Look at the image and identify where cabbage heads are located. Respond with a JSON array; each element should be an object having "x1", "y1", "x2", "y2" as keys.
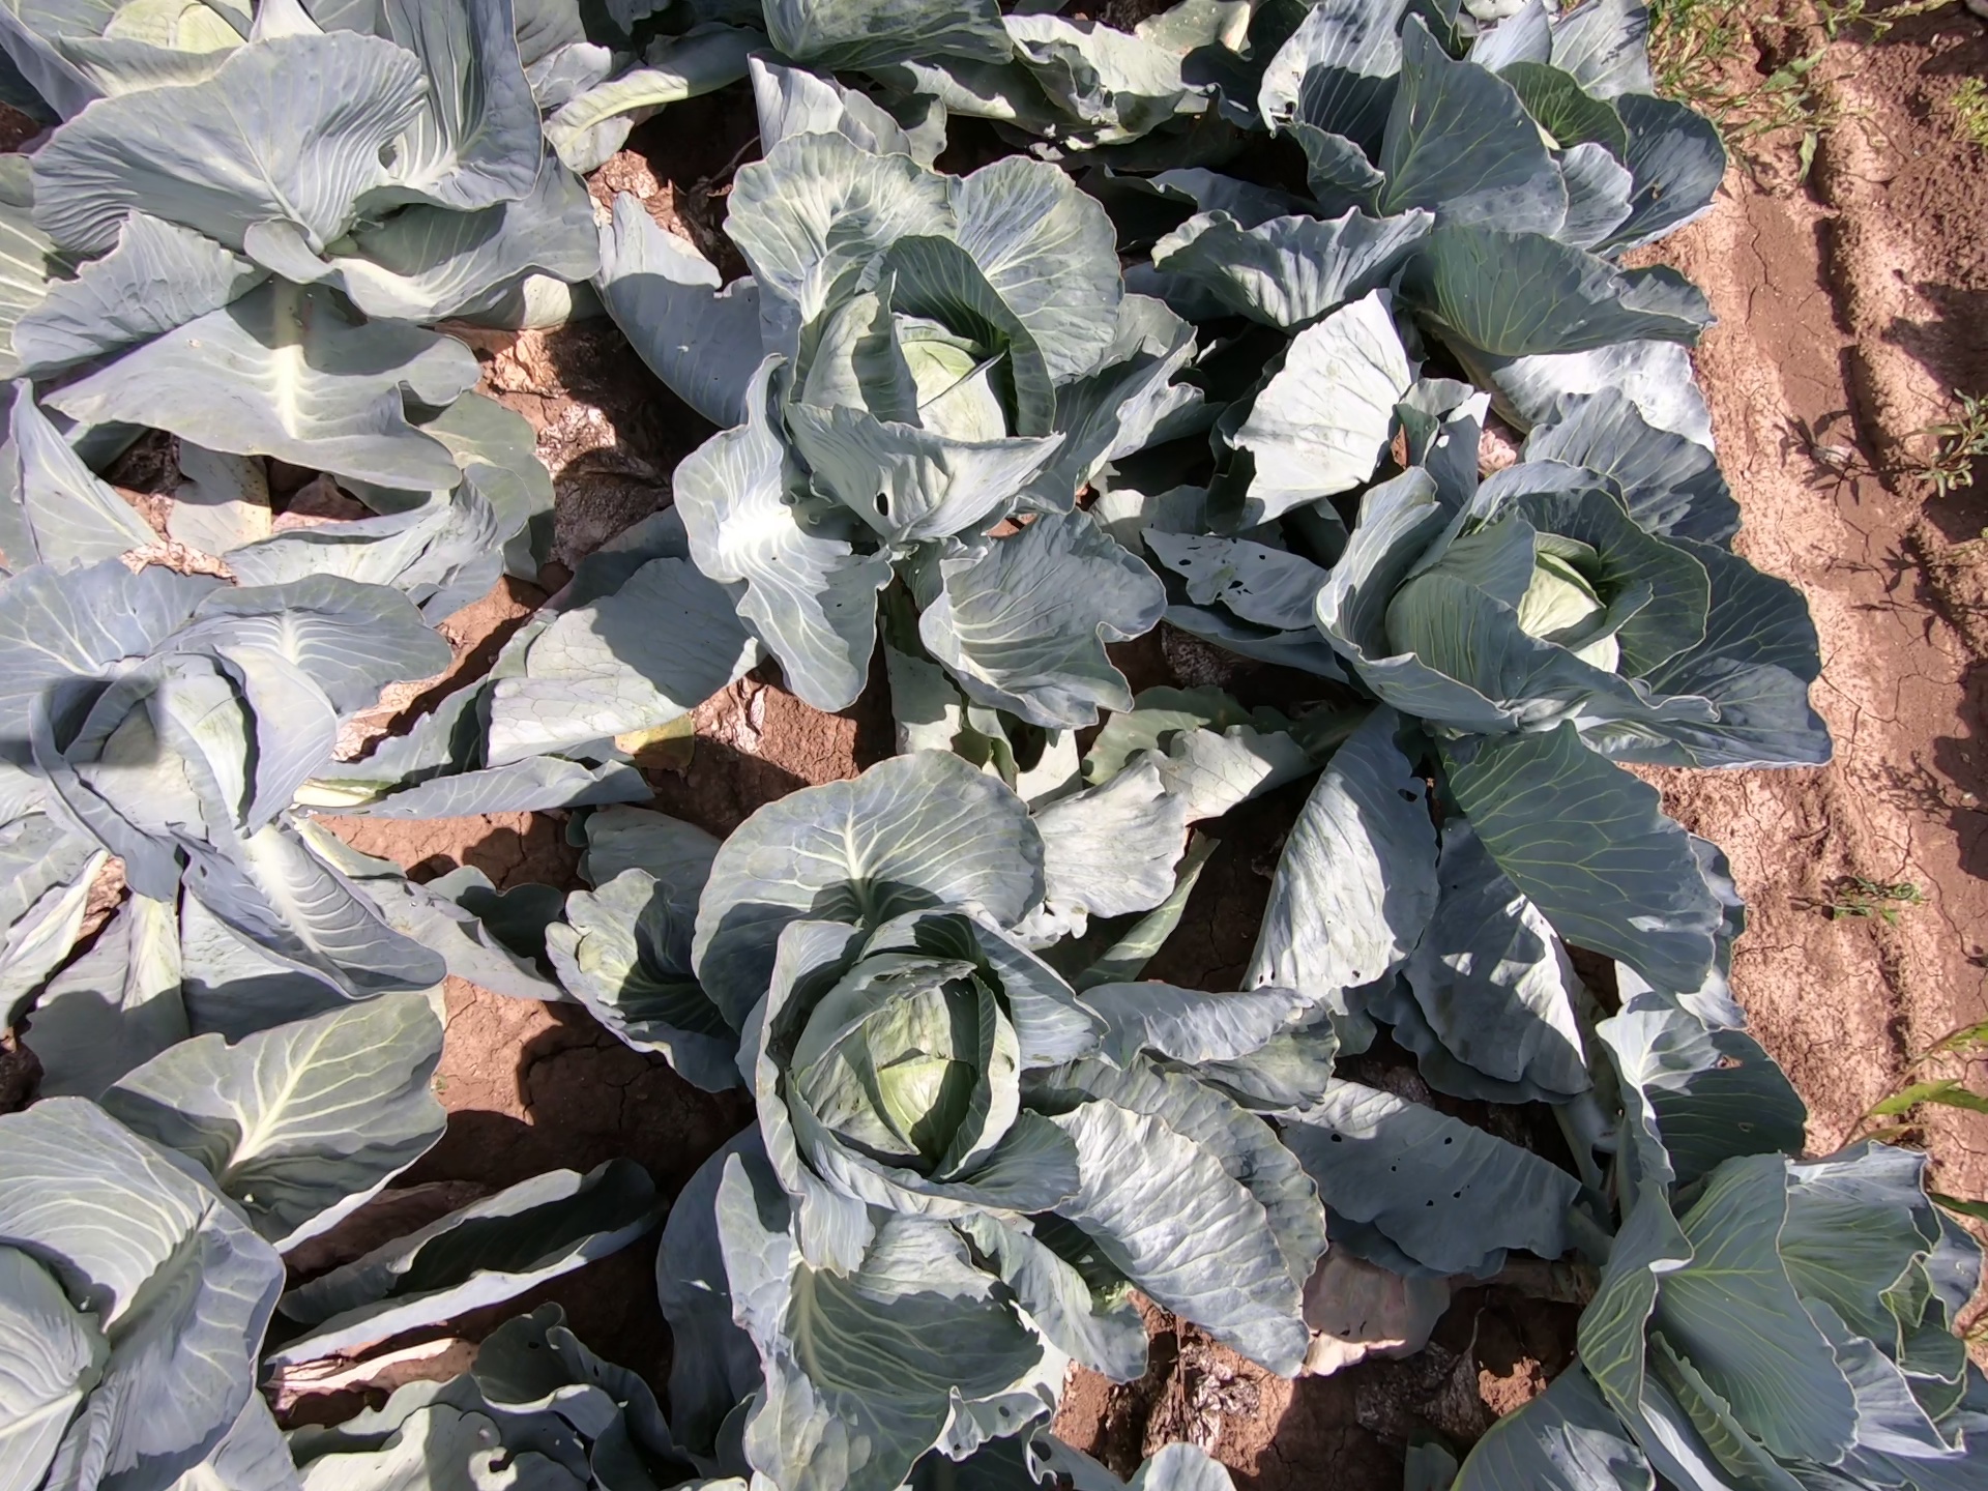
[
  {"x1": 1414, "y1": 533, "x2": 1619, "y2": 707},
  {"x1": 93, "y1": 0, "x2": 347, "y2": 217},
  {"x1": 86, "y1": 672, "x2": 321, "y2": 840},
  {"x1": 815, "y1": 309, "x2": 1008, "y2": 522},
  {"x1": 1423, "y1": 114, "x2": 1575, "y2": 255},
  {"x1": 790, "y1": 962, "x2": 1021, "y2": 1190}
]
